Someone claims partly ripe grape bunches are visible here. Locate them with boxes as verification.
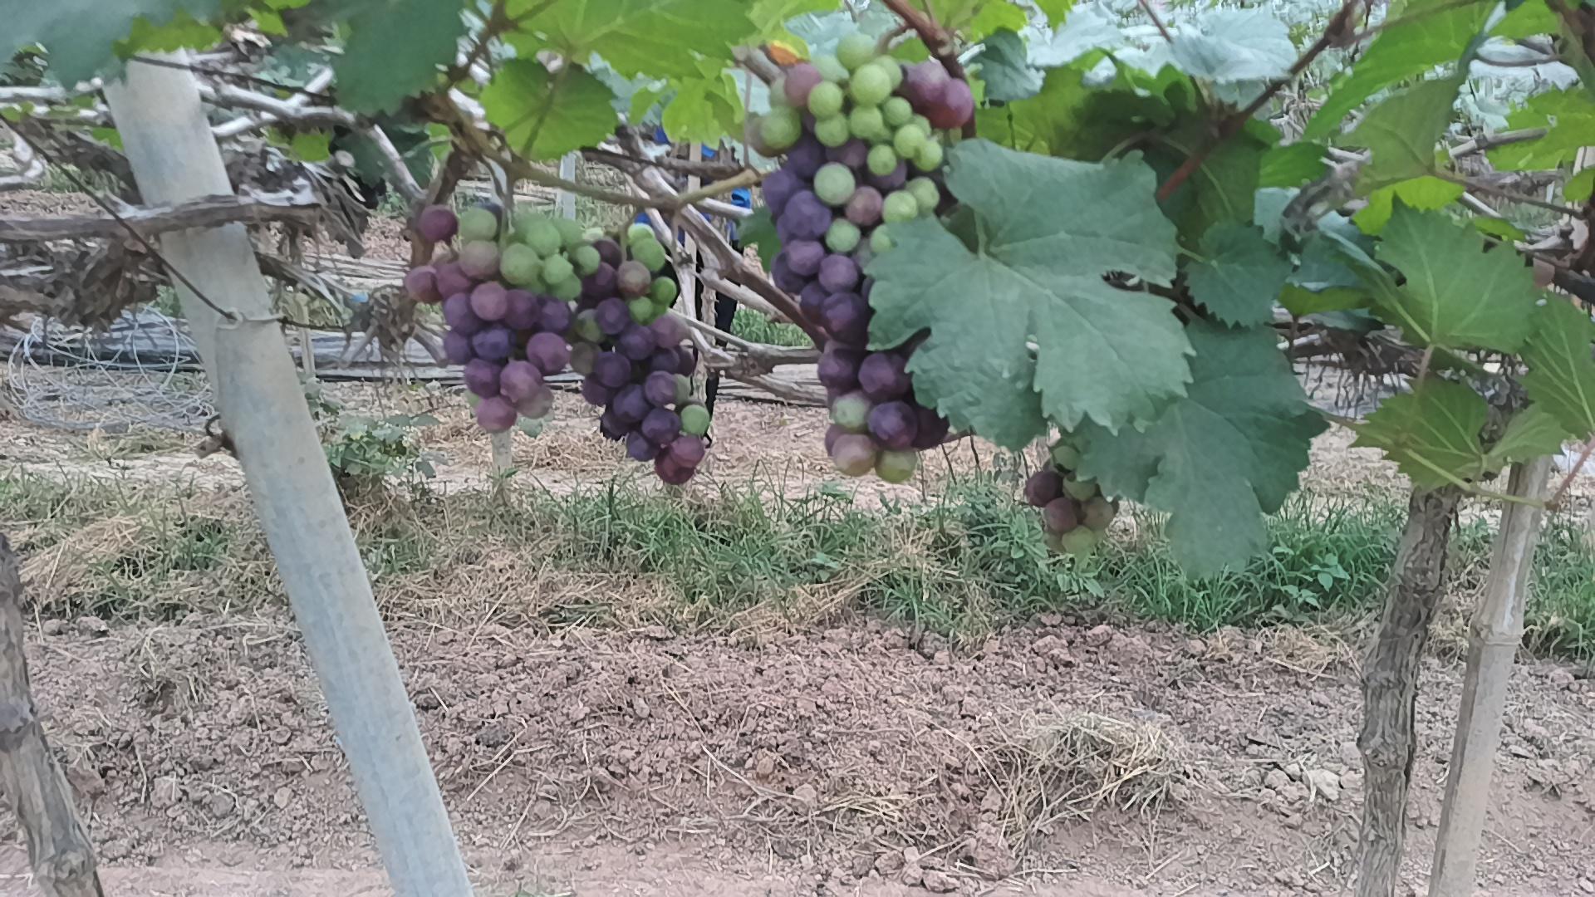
[1024,439,1116,555]
[405,208,599,433]
[744,0,974,482]
[572,224,710,484]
